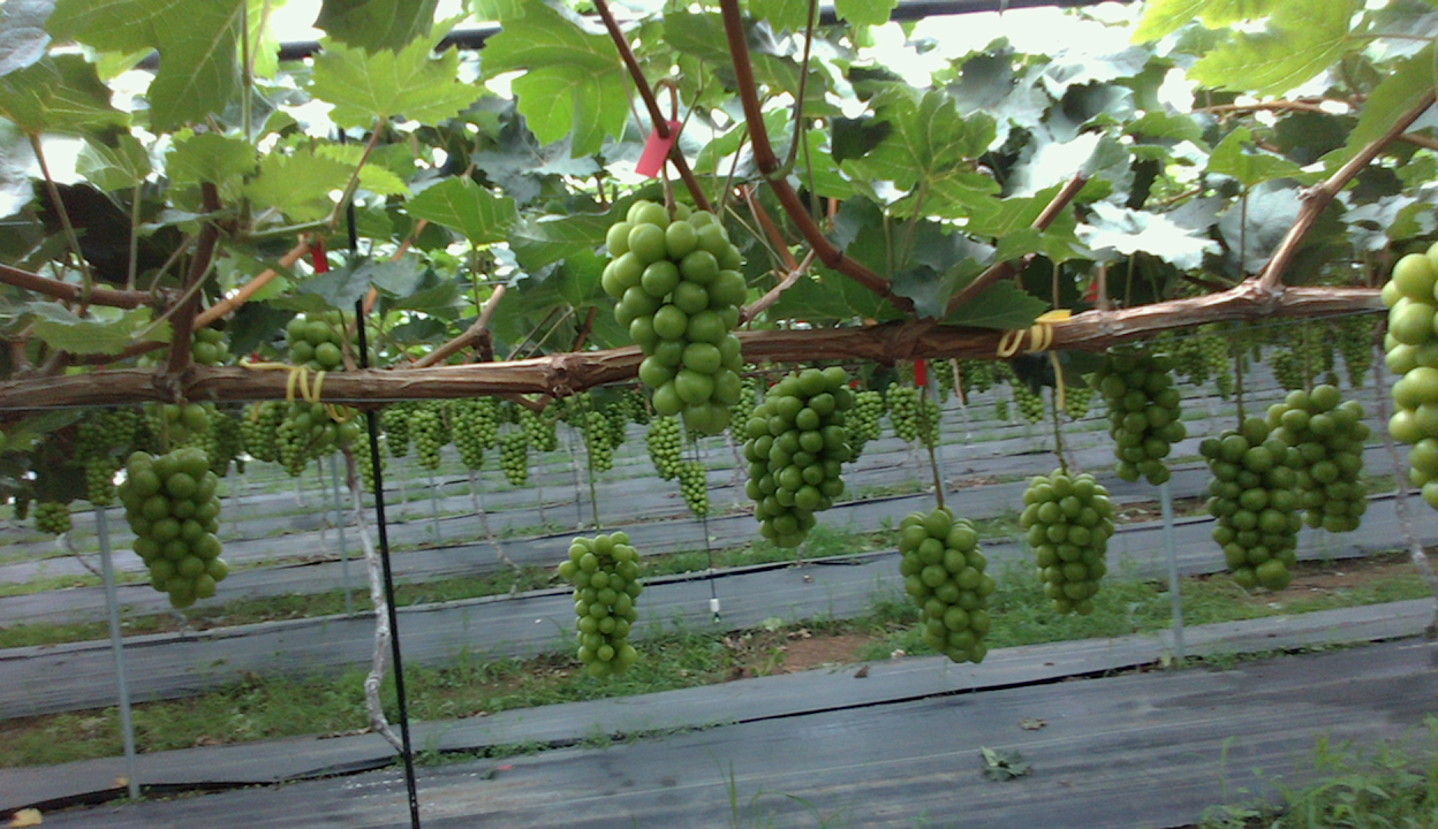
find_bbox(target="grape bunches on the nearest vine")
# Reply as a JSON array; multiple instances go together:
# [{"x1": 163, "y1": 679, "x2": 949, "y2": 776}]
[
  {"x1": 1382, "y1": 242, "x2": 1437, "y2": 508},
  {"x1": 600, "y1": 199, "x2": 748, "y2": 432}
]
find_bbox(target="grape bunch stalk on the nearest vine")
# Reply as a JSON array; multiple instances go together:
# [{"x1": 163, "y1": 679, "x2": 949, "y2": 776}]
[{"x1": 661, "y1": 166, "x2": 675, "y2": 219}]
